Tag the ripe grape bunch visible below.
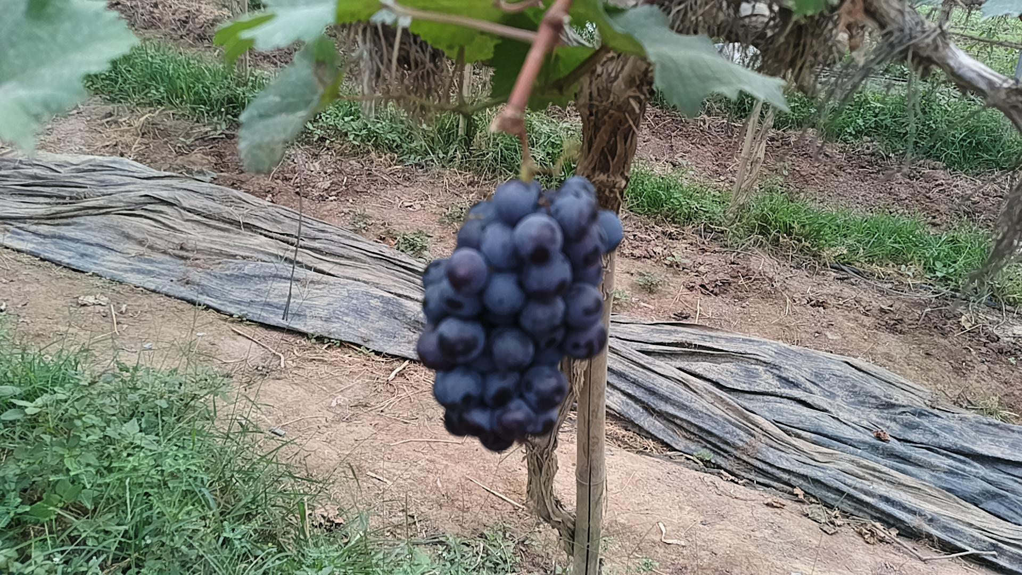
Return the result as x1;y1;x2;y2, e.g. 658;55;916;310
416;176;622;451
